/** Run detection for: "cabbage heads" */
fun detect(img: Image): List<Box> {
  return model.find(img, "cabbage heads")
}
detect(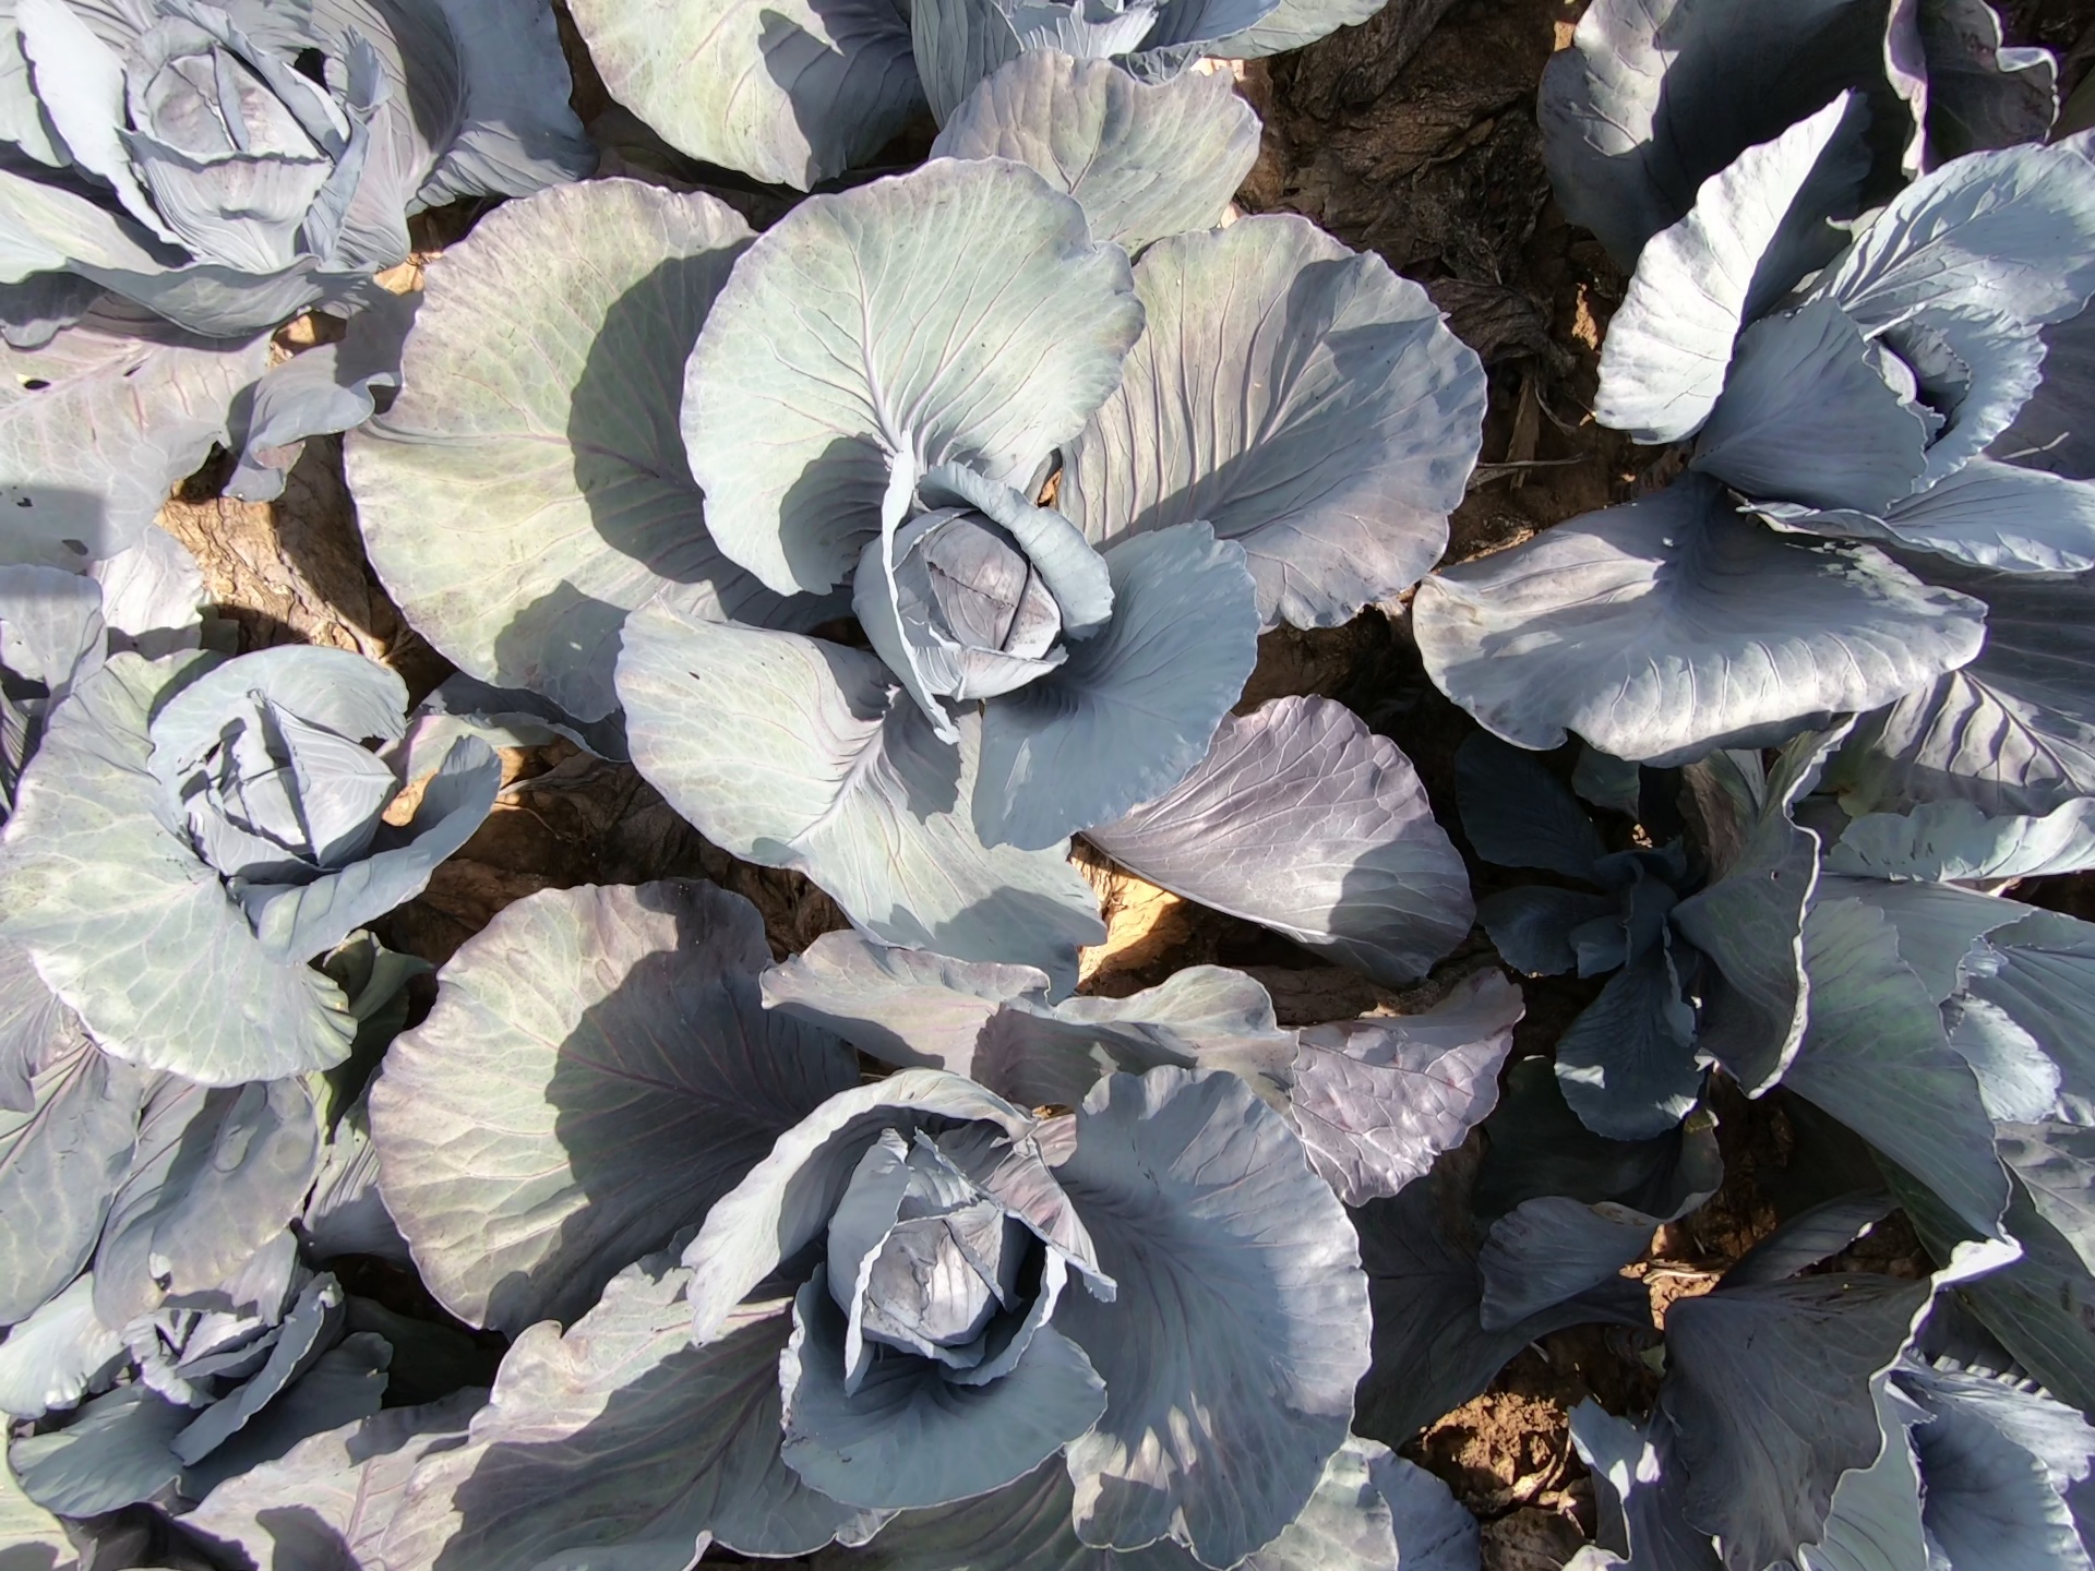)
[1767,324,1927,479]
[192,730,381,878]
[948,0,1132,139]
[163,1214,306,1381]
[1729,1371,1931,1568]
[131,49,362,251]
[866,507,1064,698]
[835,1148,1032,1356]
